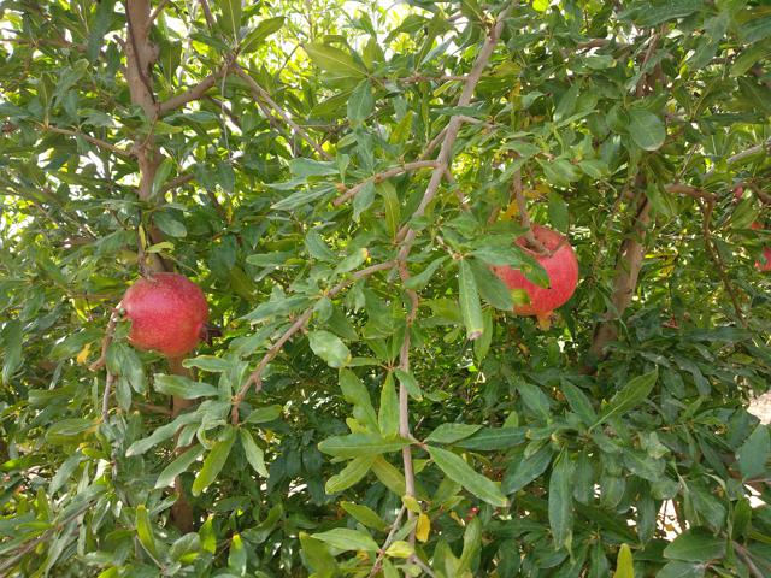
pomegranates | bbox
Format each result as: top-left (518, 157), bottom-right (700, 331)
top-left (123, 272), bottom-right (218, 358)
top-left (754, 247), bottom-right (771, 271)
top-left (492, 226), bottom-right (578, 330)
